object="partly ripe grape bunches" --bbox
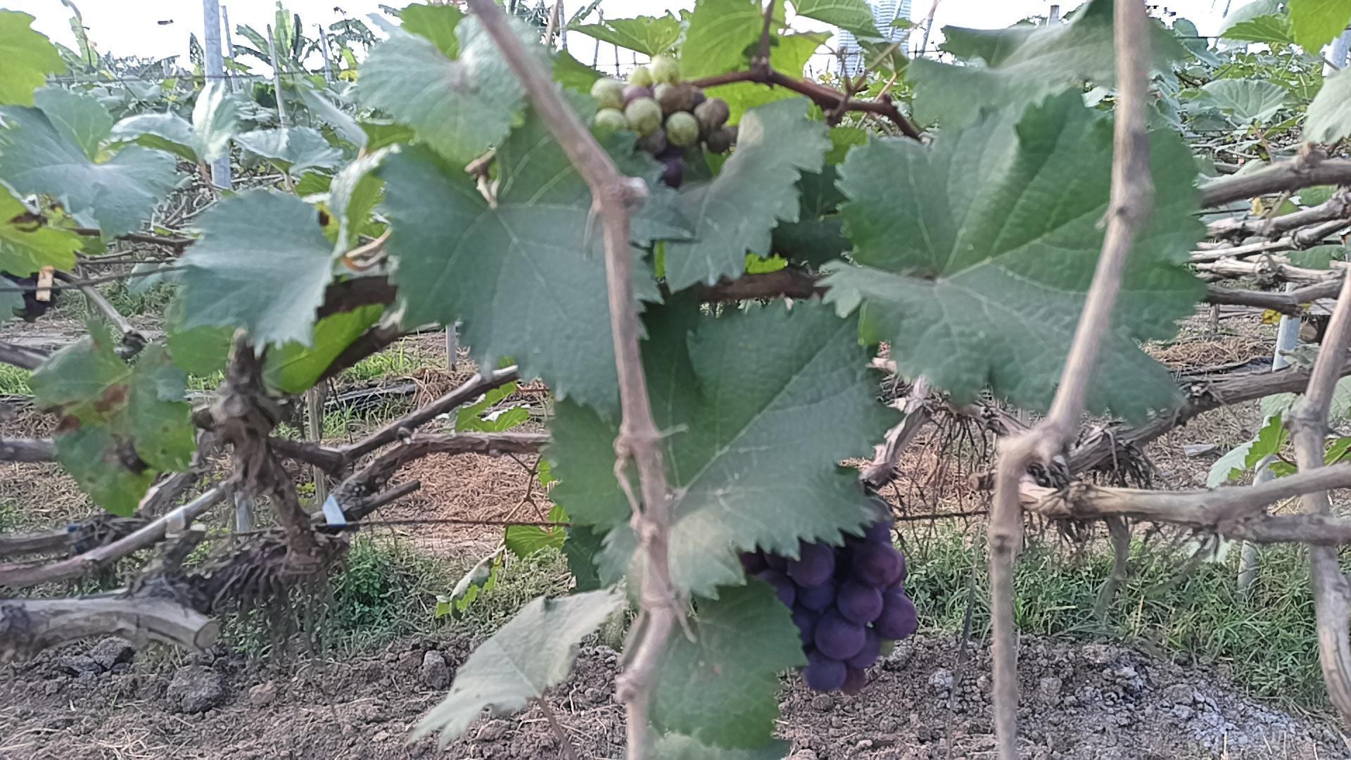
[740,512,915,693]
[592,56,739,187]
